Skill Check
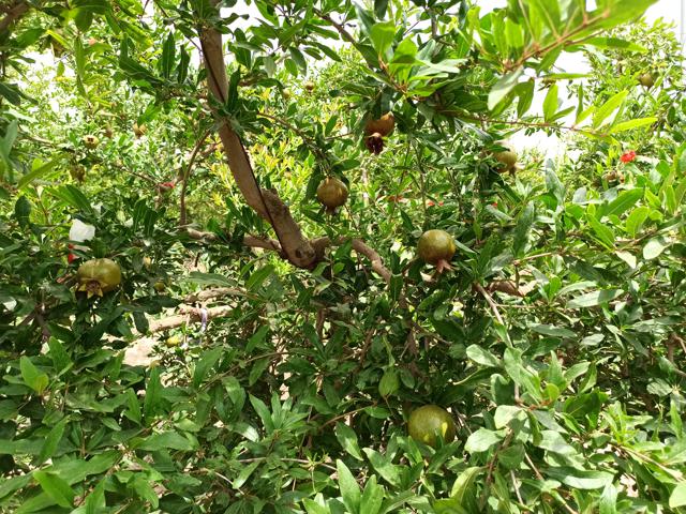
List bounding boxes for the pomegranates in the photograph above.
[316,177,349,215]
[493,151,518,176]
[81,134,100,149]
[70,166,86,184]
[75,257,121,300]
[417,229,457,275]
[132,122,147,138]
[407,405,456,448]
[364,111,396,155]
